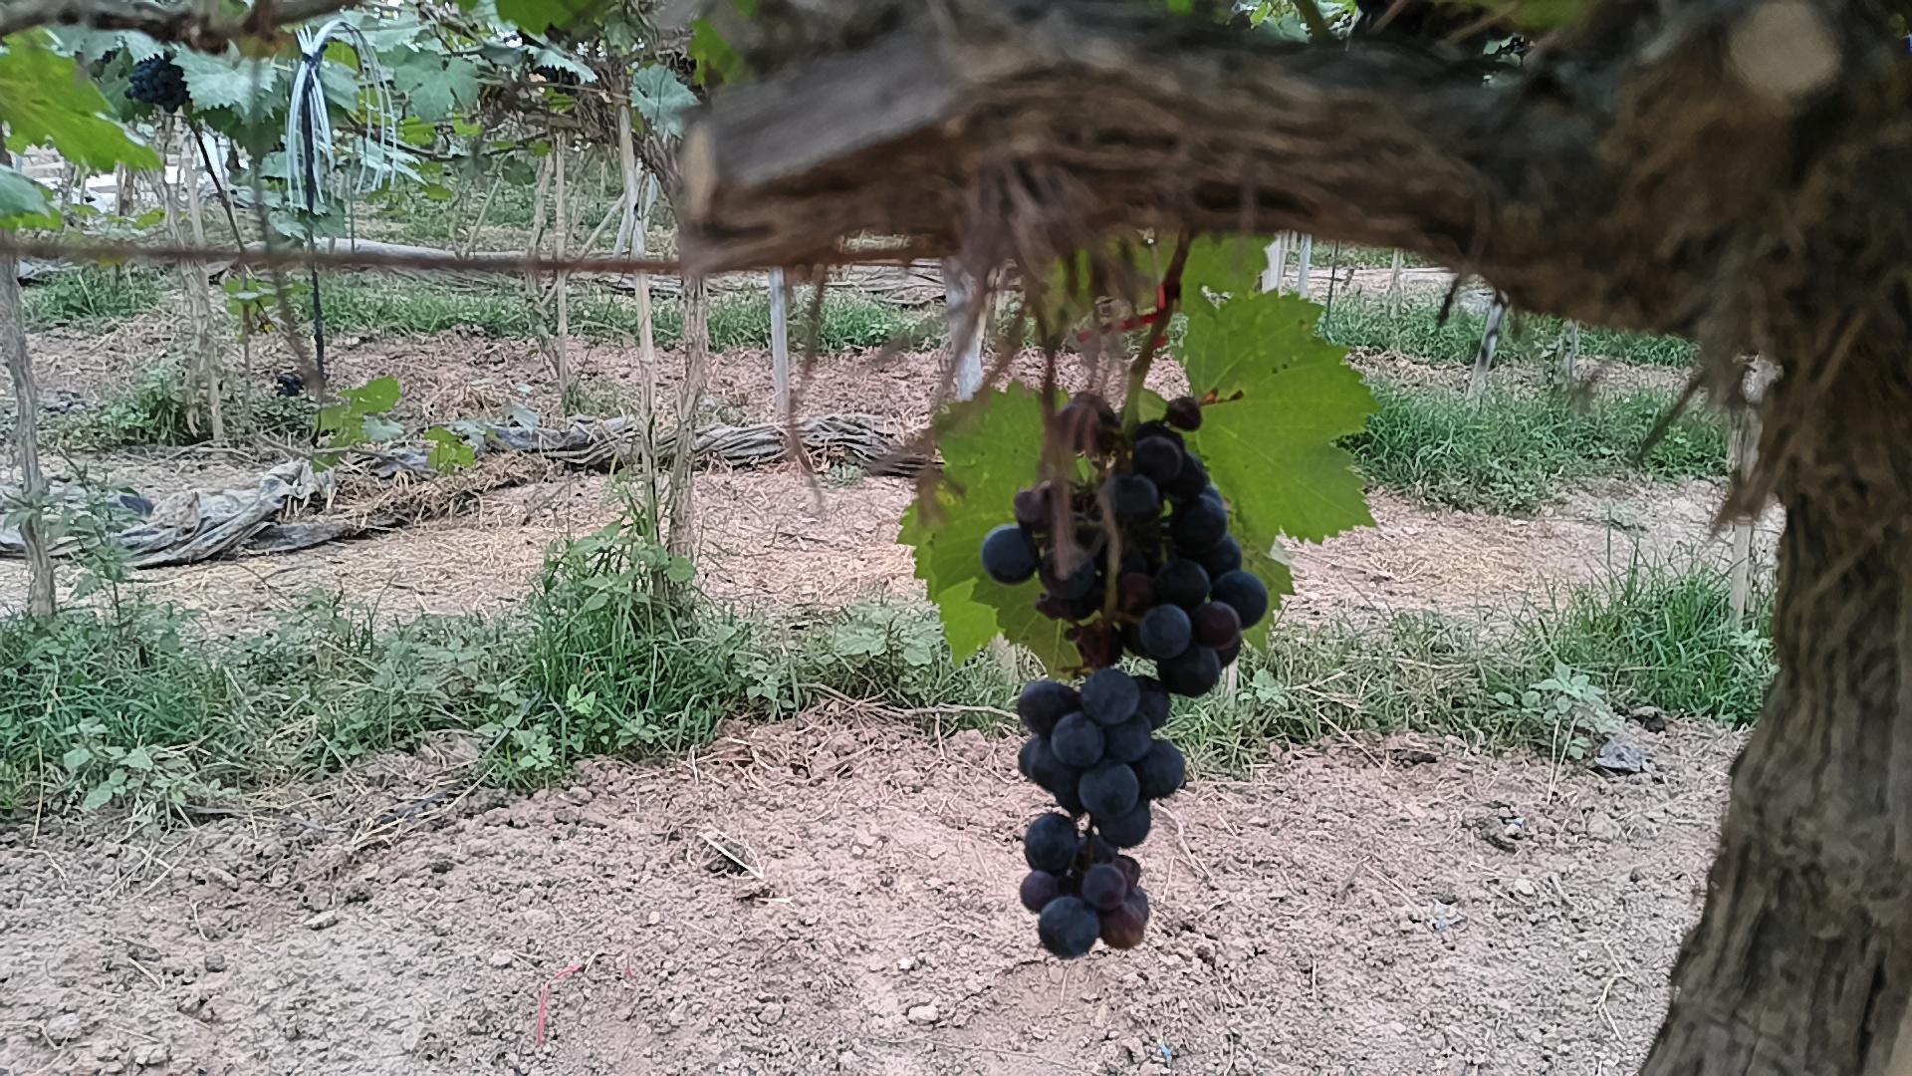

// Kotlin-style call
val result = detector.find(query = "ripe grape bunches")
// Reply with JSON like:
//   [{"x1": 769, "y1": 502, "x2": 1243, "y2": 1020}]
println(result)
[
  {"x1": 982, "y1": 393, "x2": 1267, "y2": 955},
  {"x1": 124, "y1": 51, "x2": 190, "y2": 115}
]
